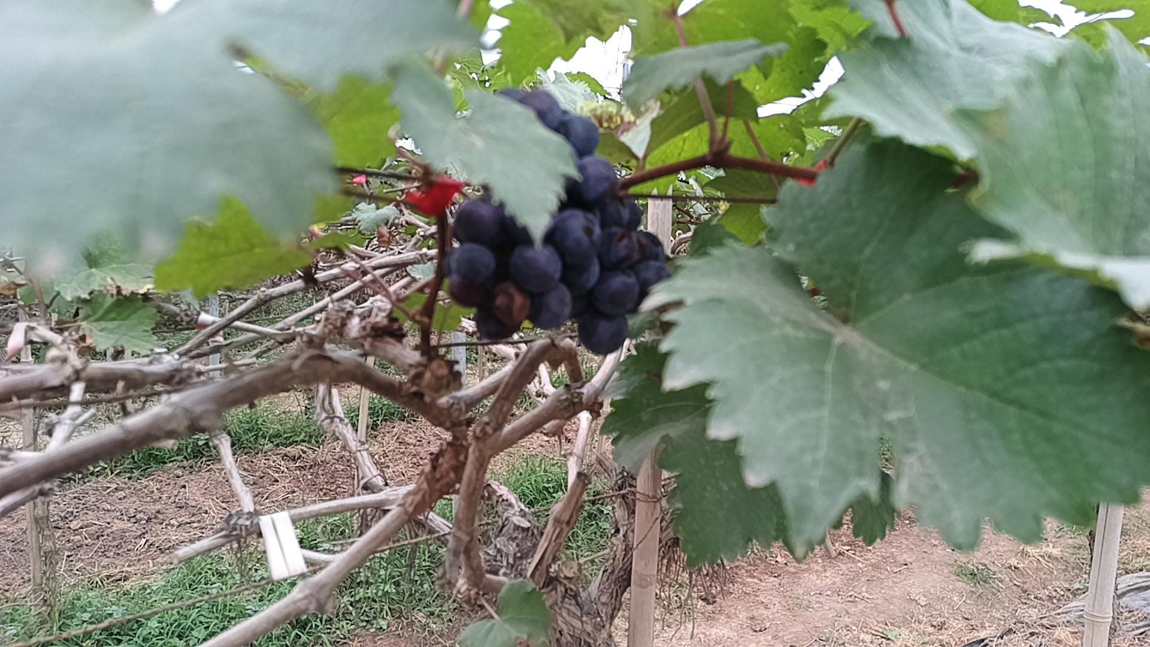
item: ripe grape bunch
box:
[448,88,671,354]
